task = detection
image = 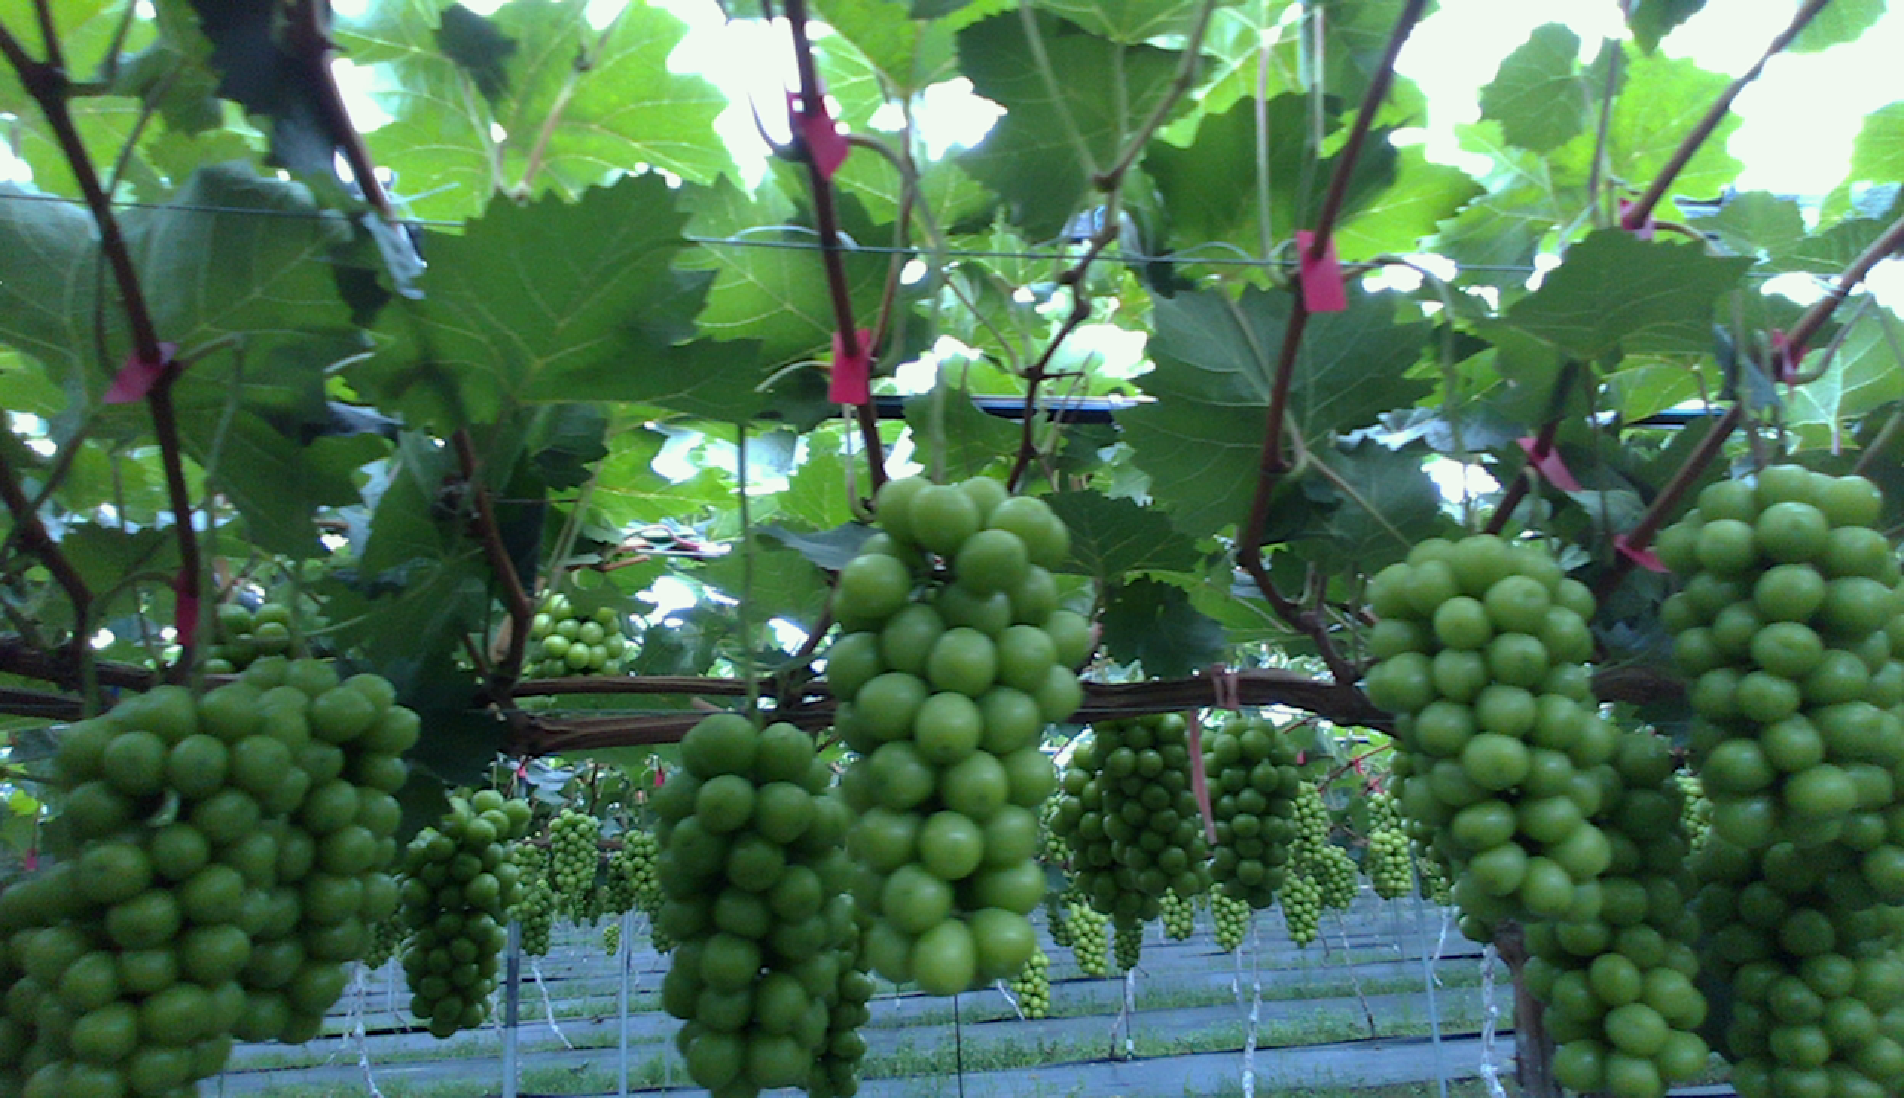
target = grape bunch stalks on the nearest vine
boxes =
[1729,284,1767,473]
[738,427,761,726]
[1341,255,1475,534]
[177,332,247,686]
[291,561,308,654]
[931,363,947,483]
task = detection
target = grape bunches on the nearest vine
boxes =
[1365,531,1611,926]
[1524,724,1707,1096]
[1697,837,1902,1096]
[24,686,288,1096]
[1654,462,1902,912]
[827,476,1094,1000]
[650,714,848,1096]
[235,654,416,1046]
